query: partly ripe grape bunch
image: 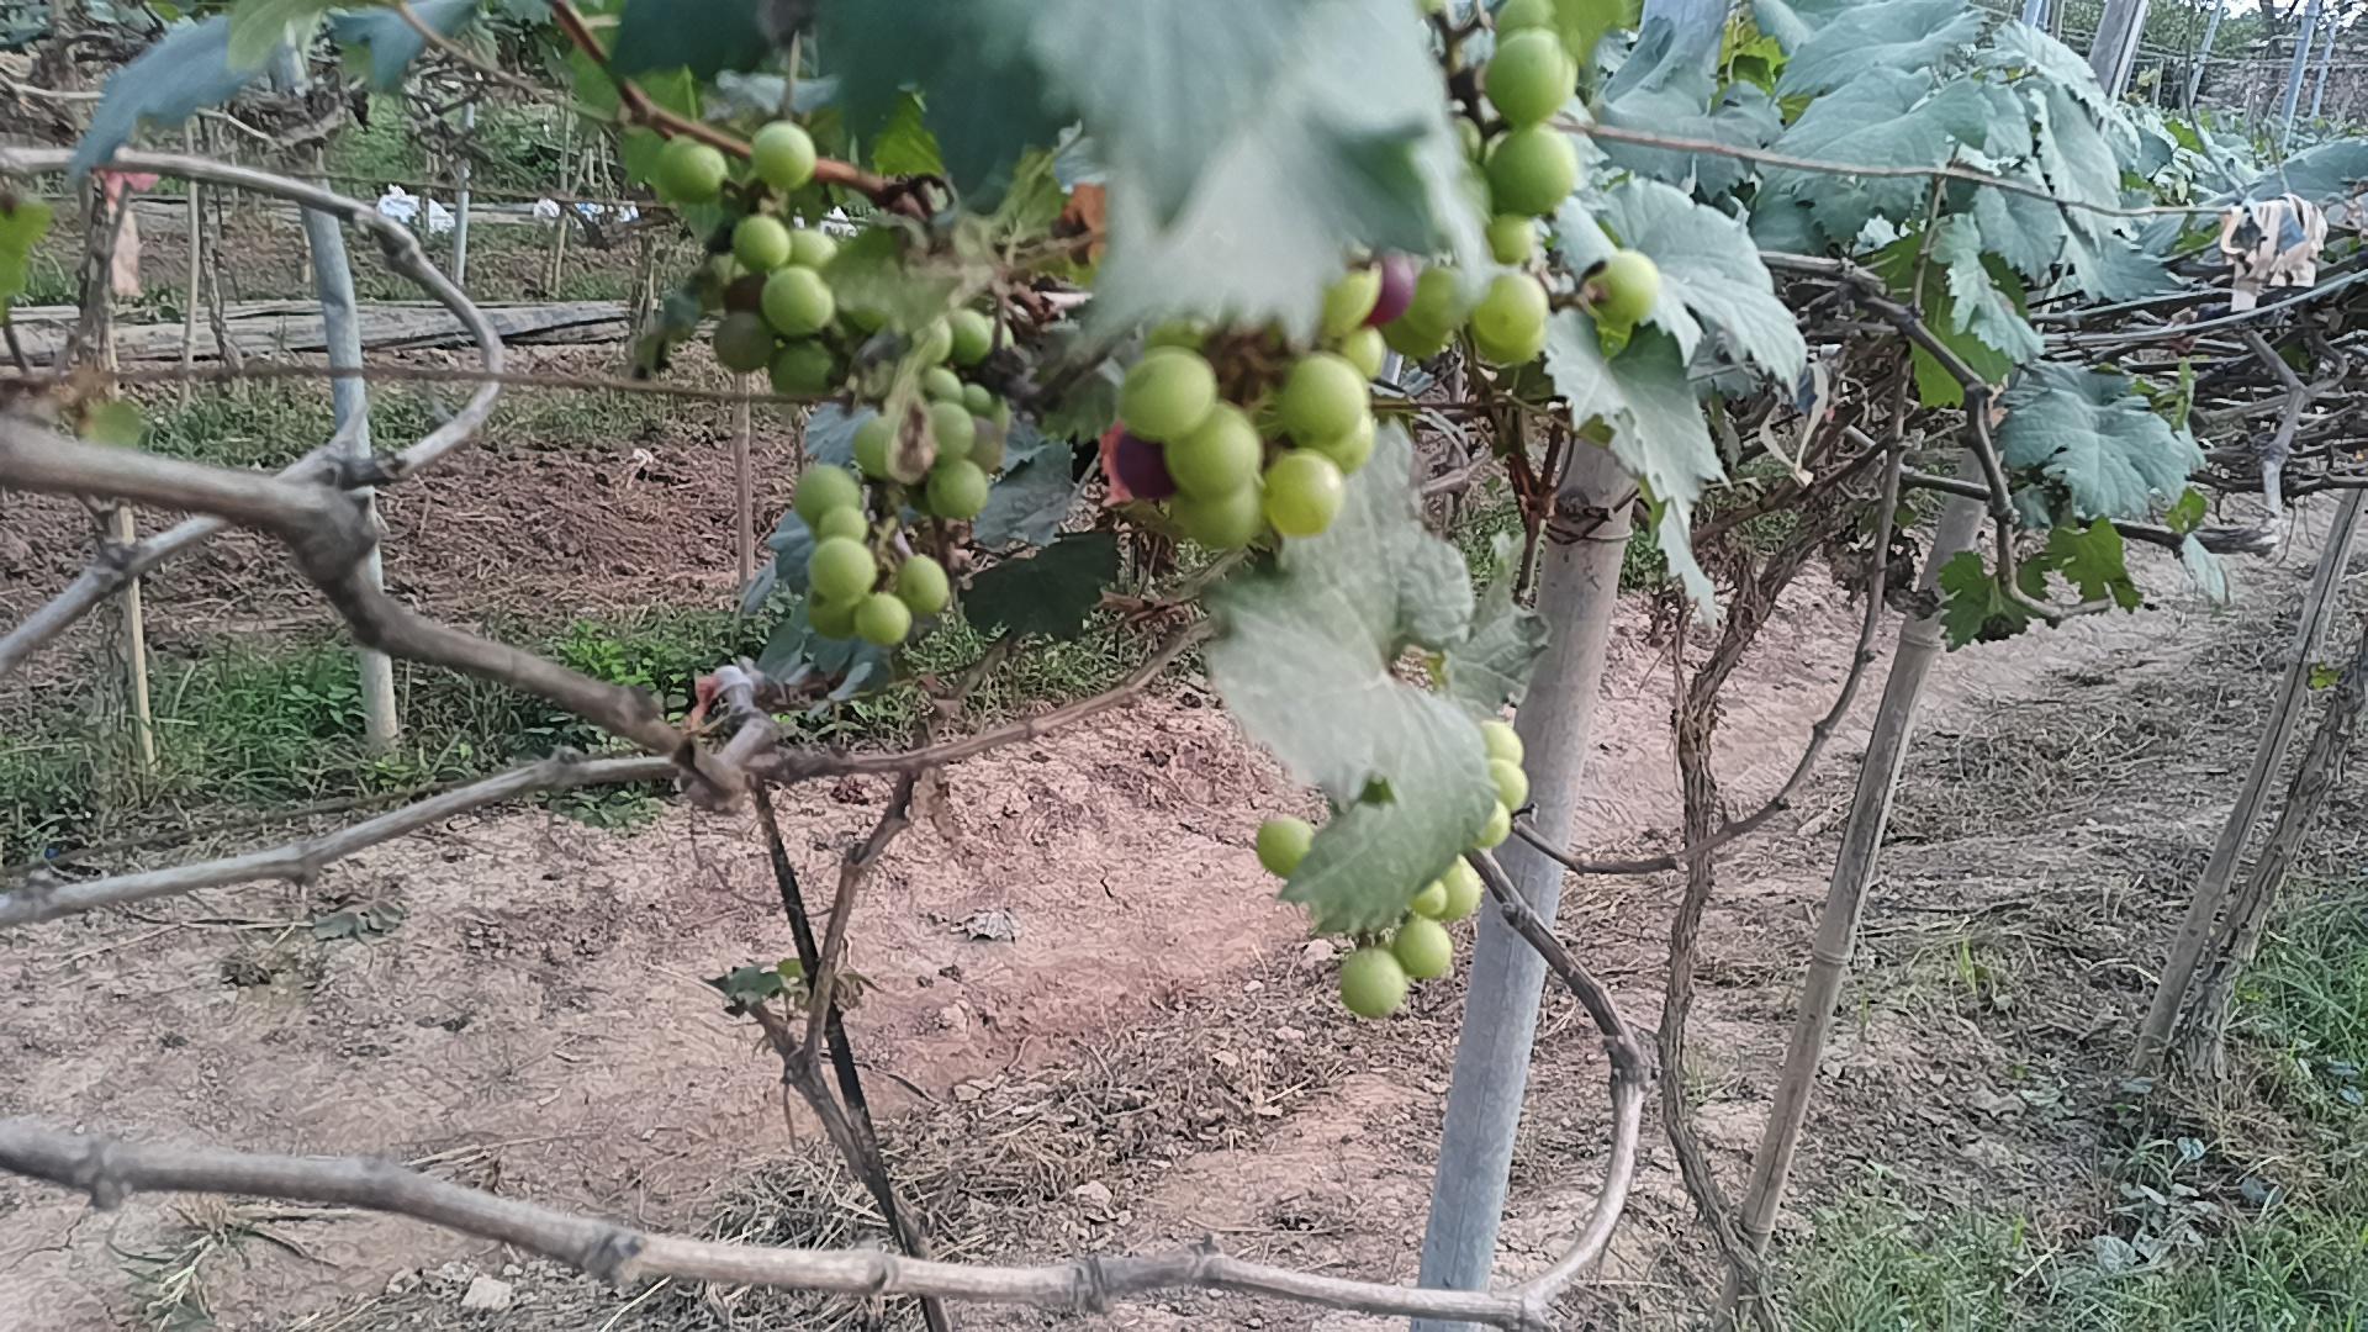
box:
[1103,0,1661,550]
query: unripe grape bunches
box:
[1260,720,1527,1016]
[656,122,1031,650]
